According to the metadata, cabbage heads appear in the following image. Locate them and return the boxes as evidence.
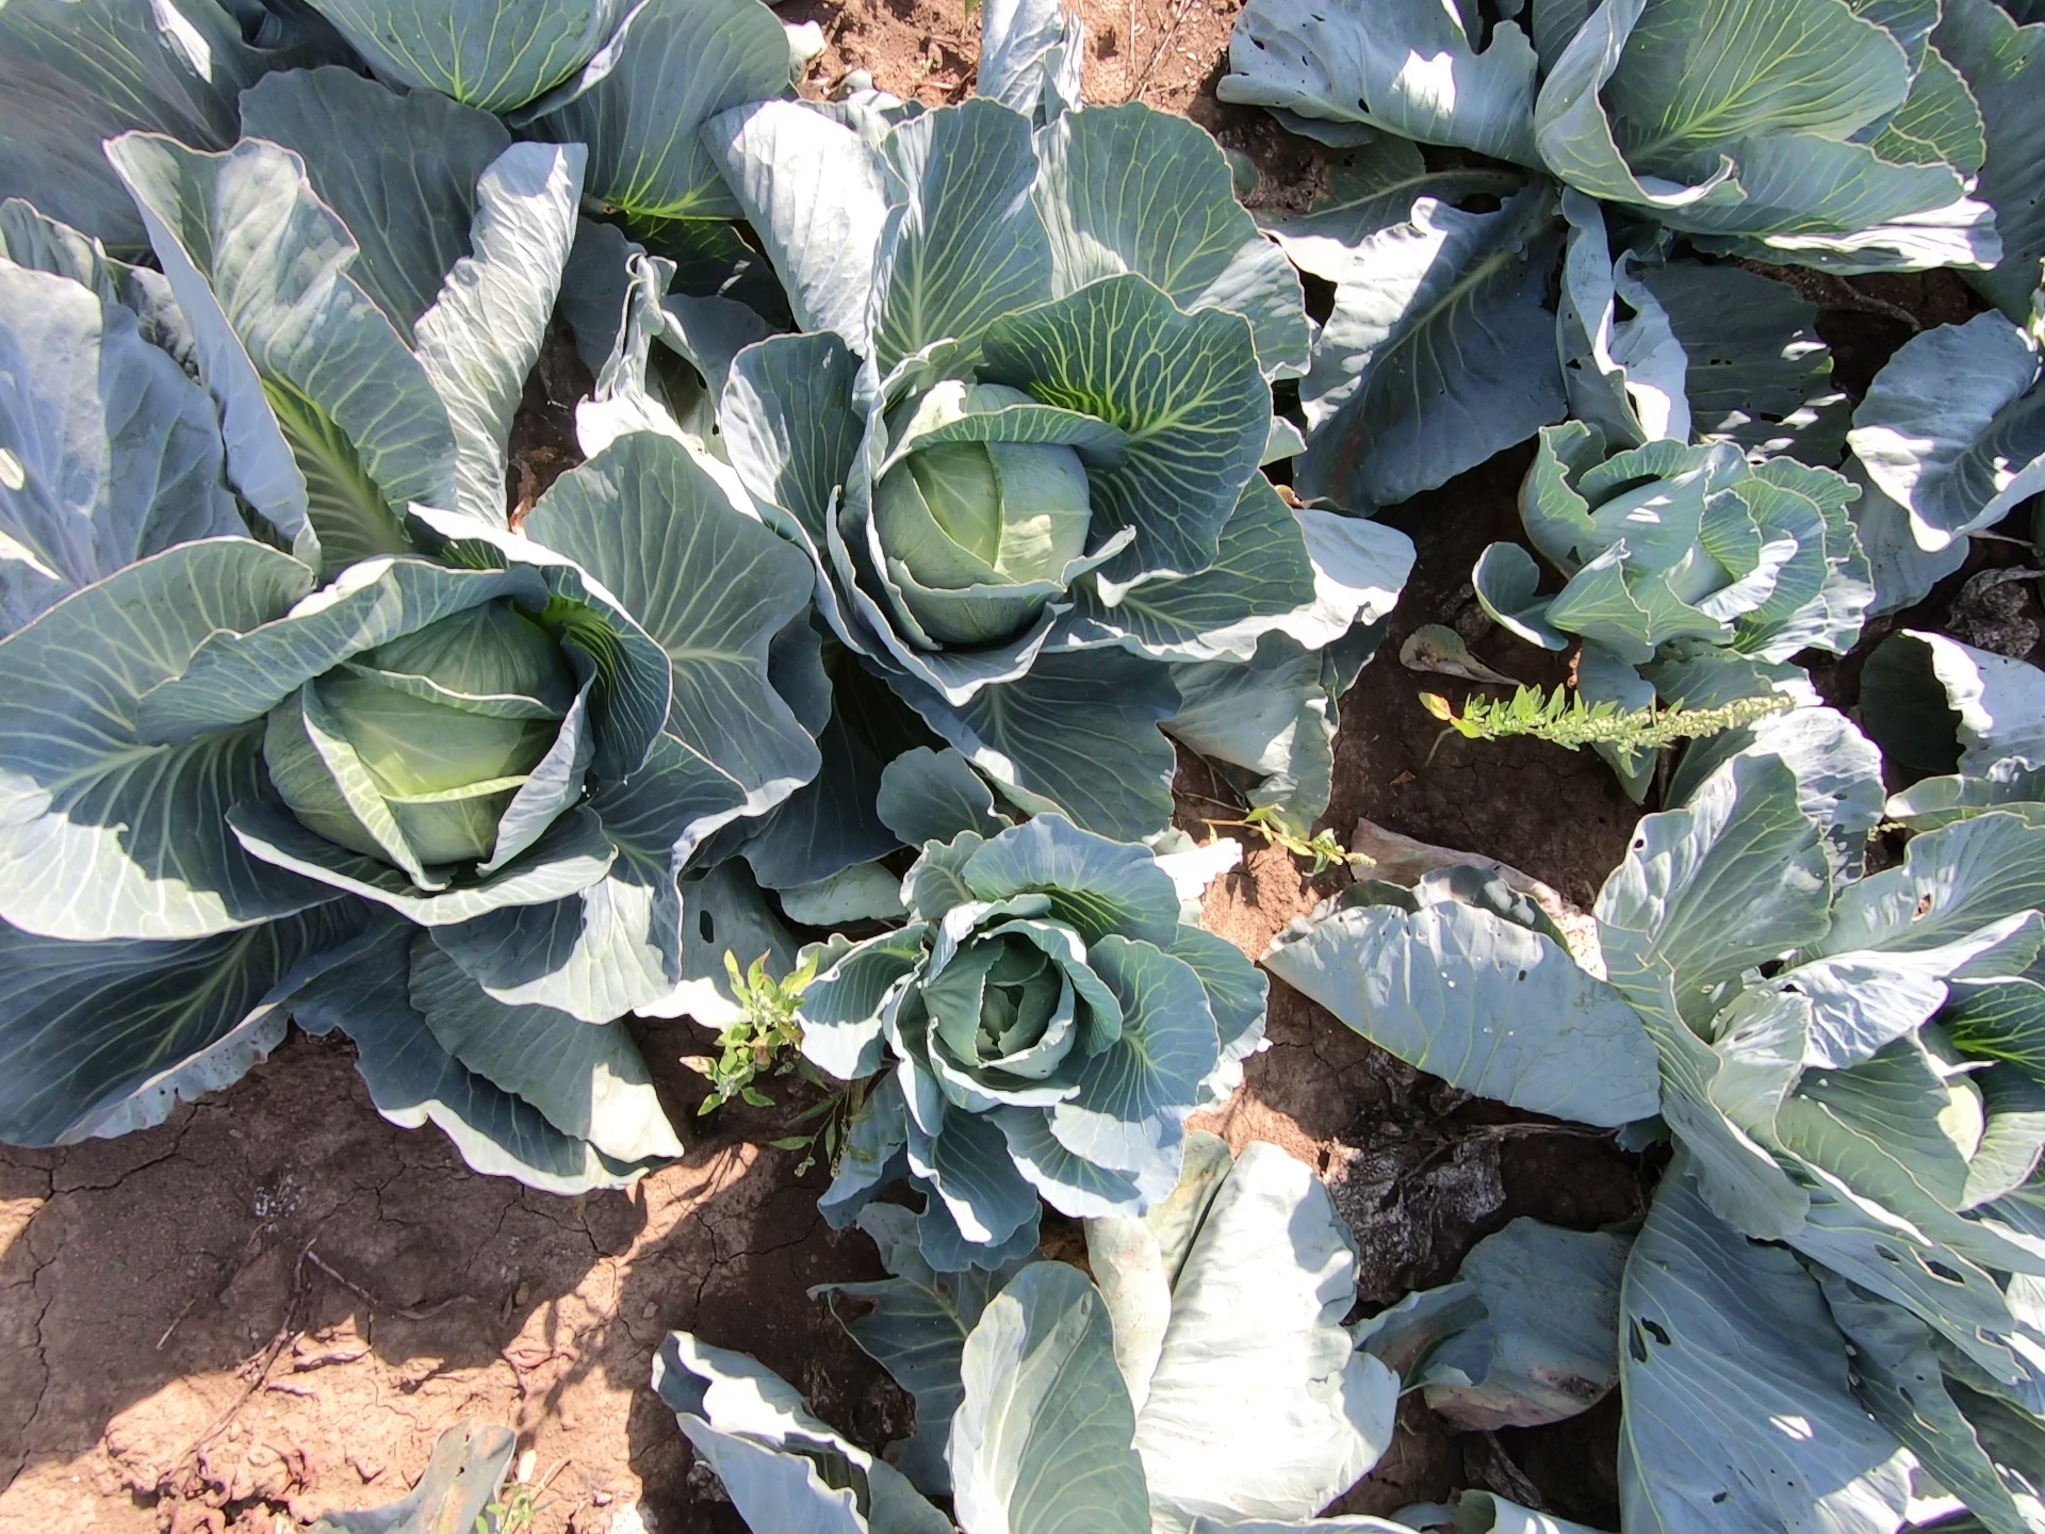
[938,936,1073,1059]
[1620,508,1743,618]
[262,598,570,849]
[869,402,1087,620]
[1763,1012,1983,1188]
